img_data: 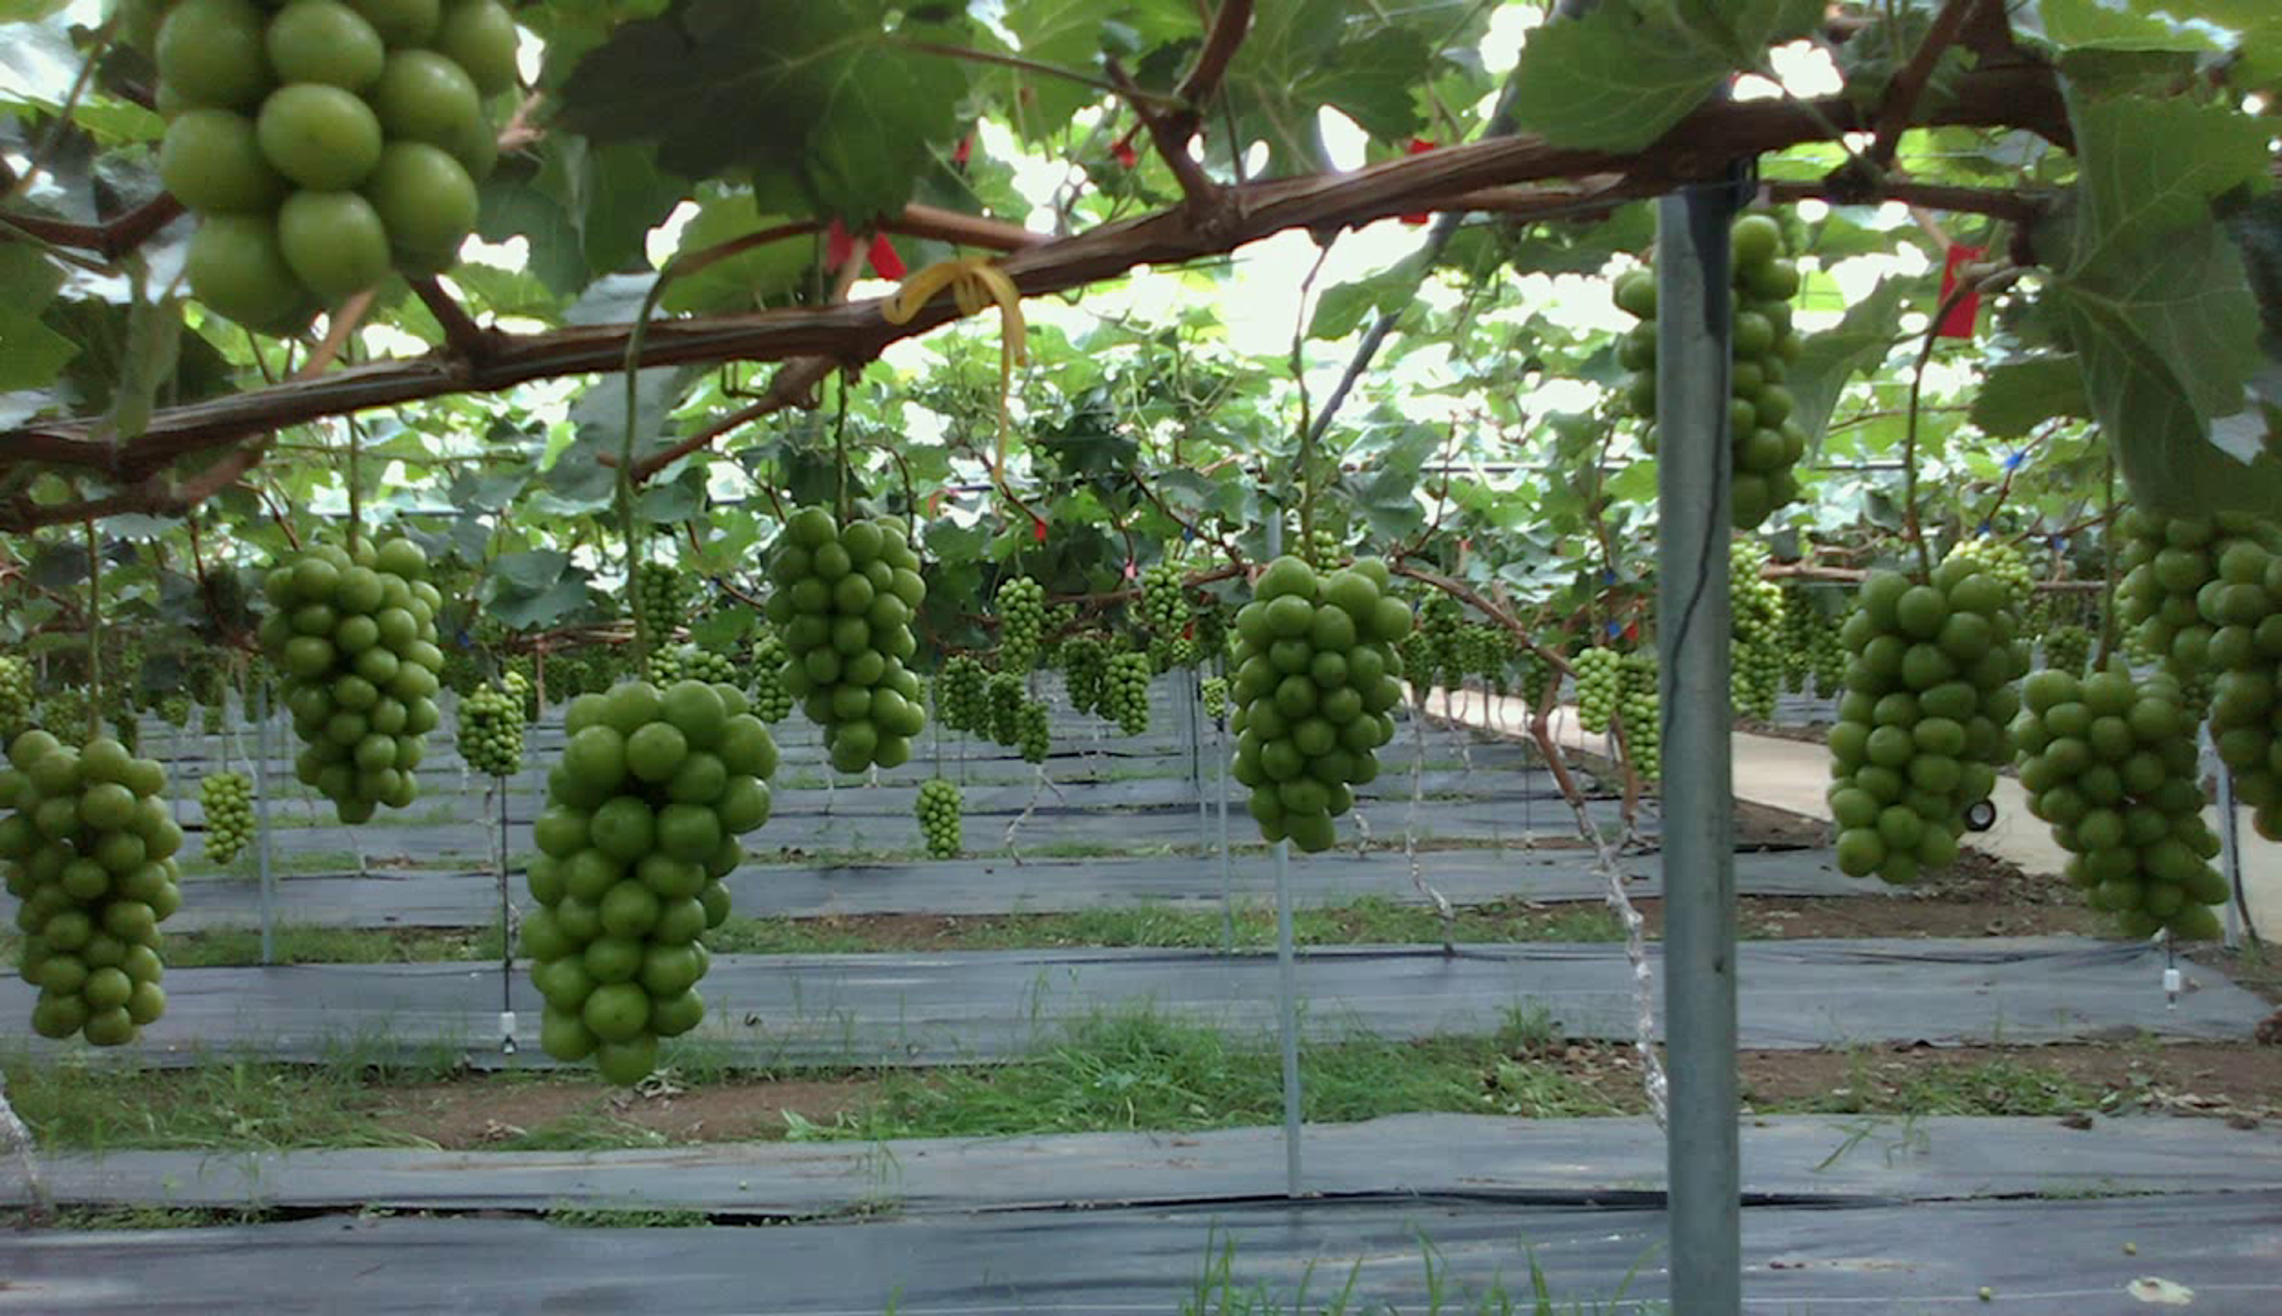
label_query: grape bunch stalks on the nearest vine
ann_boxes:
[616,223,817,684]
[2092,455,2117,674]
[1905,280,1971,583]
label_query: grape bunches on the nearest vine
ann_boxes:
[1821,556,2031,886]
[2198,537,2280,841]
[155,2,517,342]
[2123,504,2280,687]
[2015,656,2231,941]
[519,678,777,1088]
